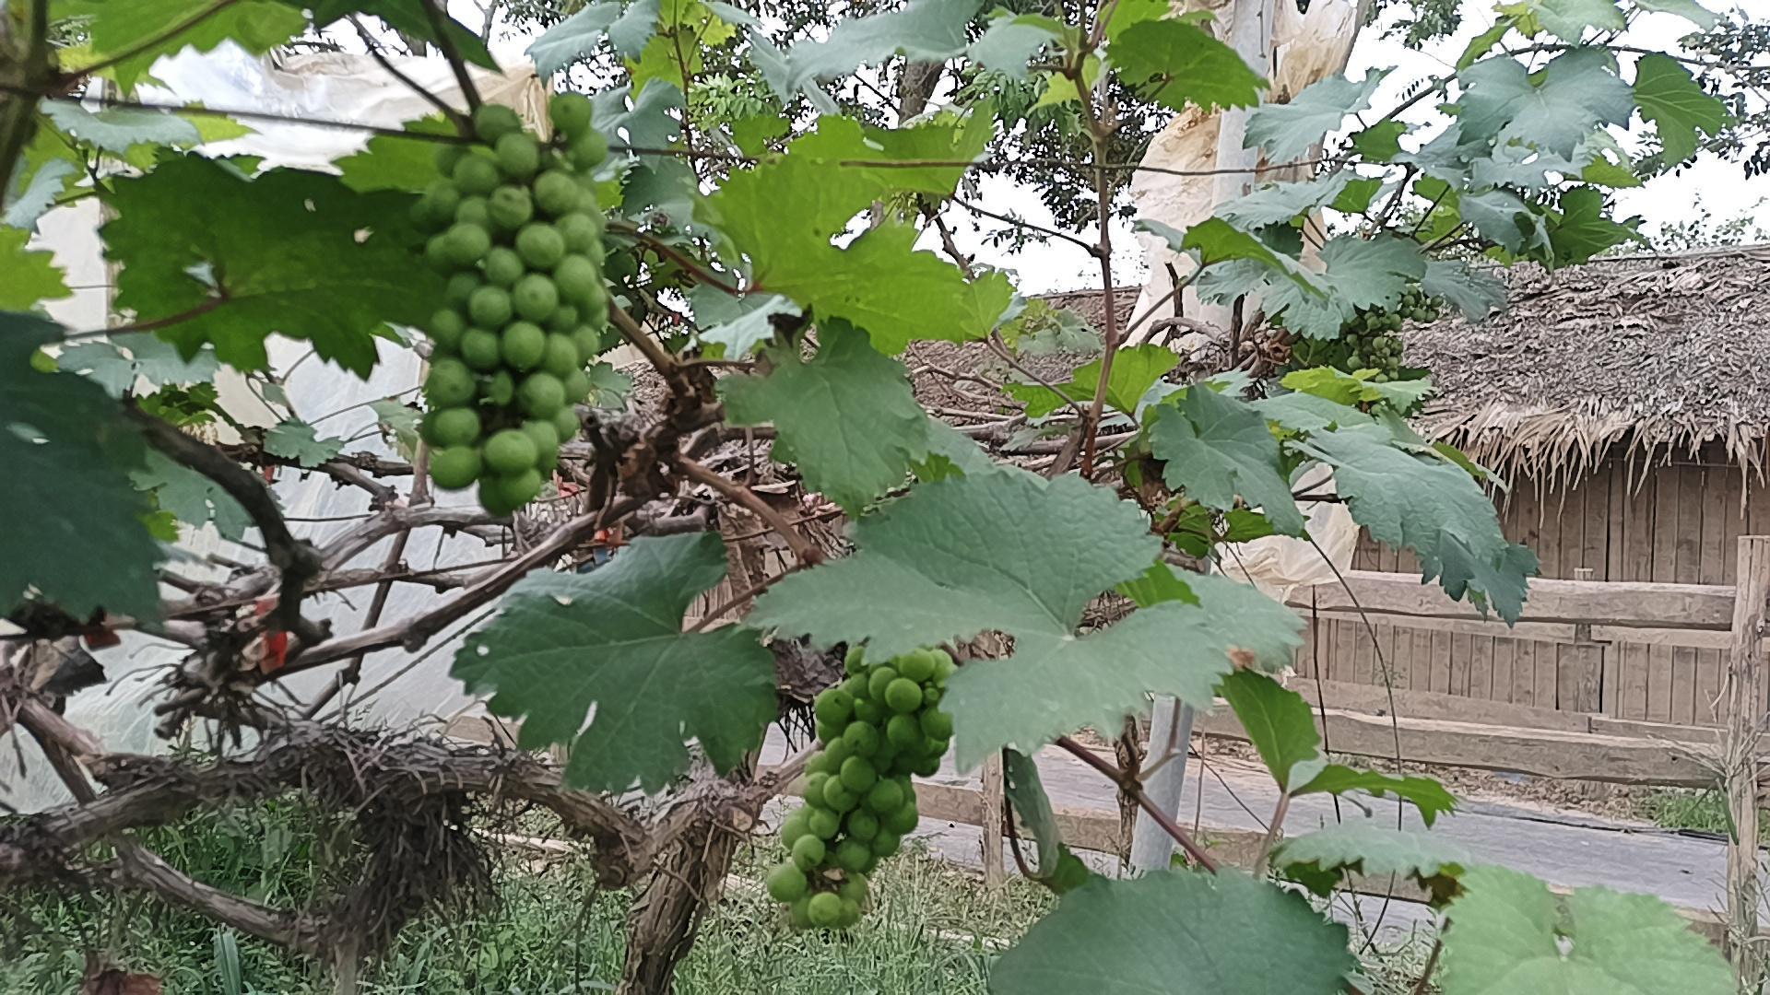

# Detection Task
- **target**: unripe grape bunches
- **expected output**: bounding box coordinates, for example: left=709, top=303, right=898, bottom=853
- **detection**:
left=769, top=651, right=956, bottom=928
left=411, top=95, right=607, bottom=515
left=1344, top=278, right=1443, bottom=415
